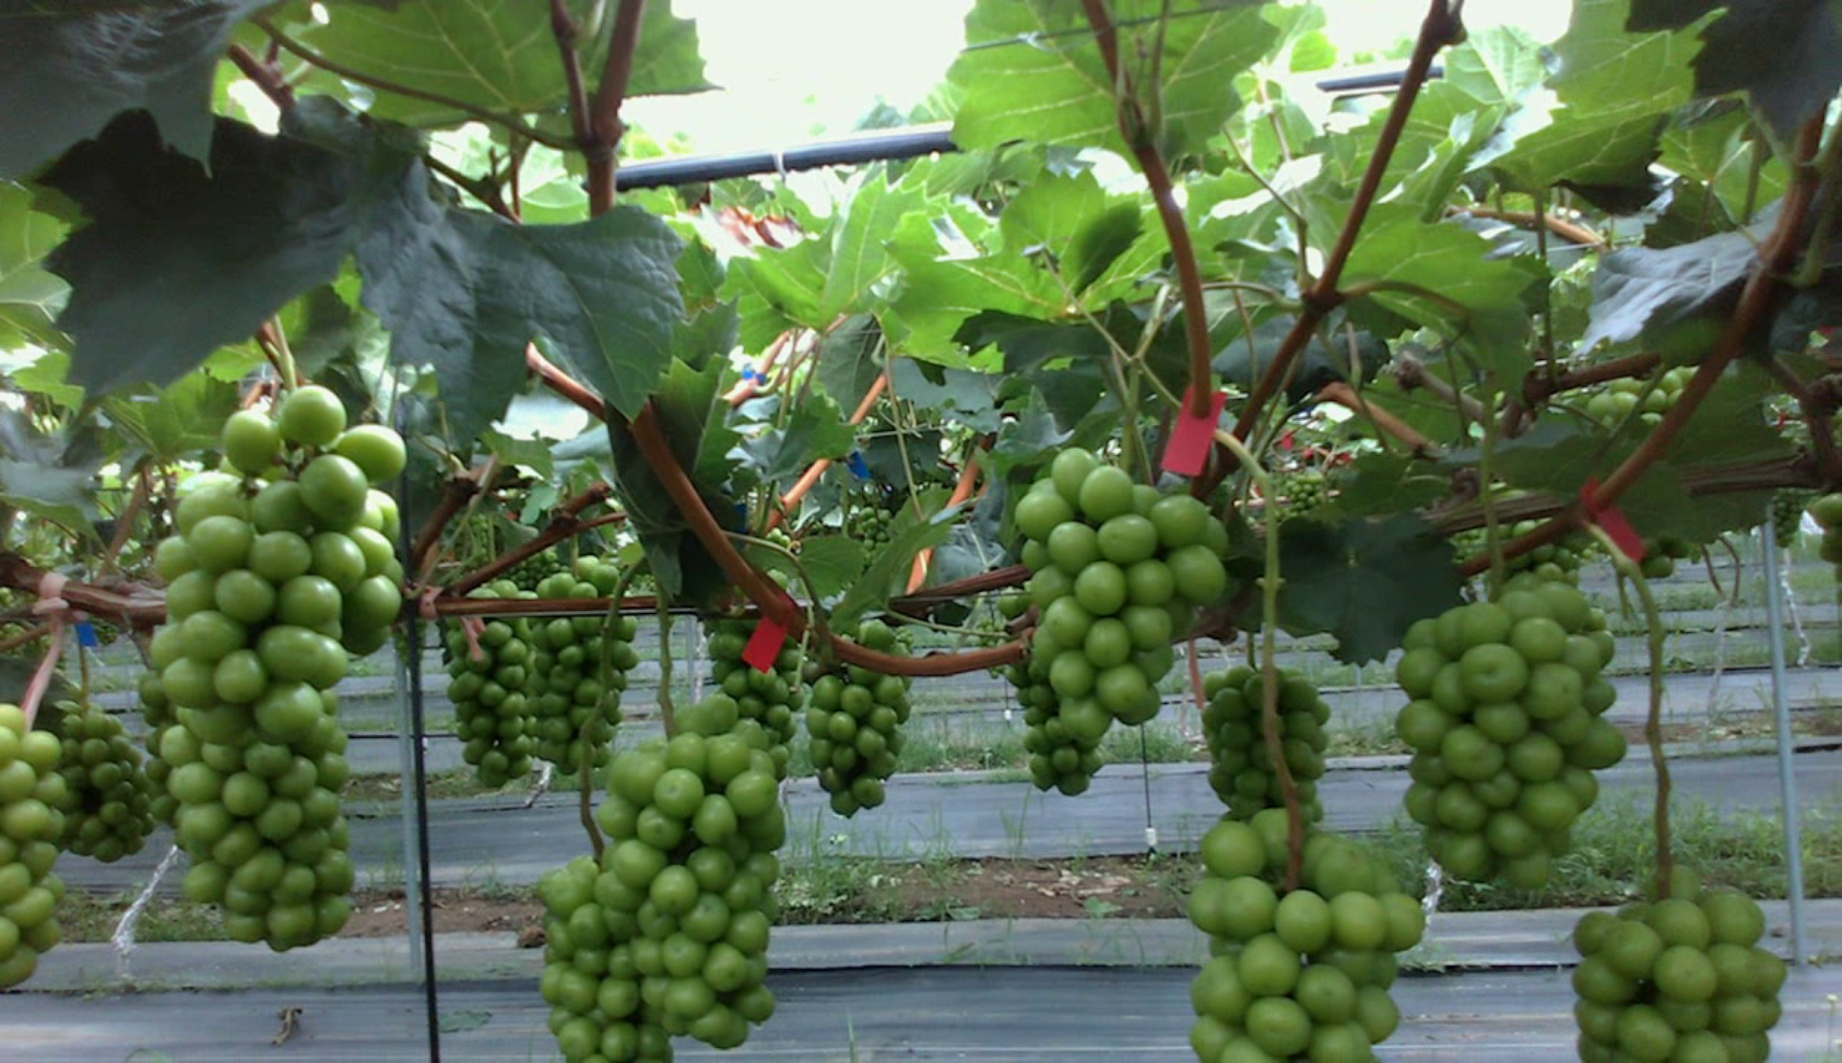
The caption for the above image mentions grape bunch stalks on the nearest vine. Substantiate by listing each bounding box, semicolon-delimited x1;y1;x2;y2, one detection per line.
1581;521;1672;898
654;577;676;740
1216;428;1305;892
269;314;297;396
577;552;645;871
1116;282;1173;472
1343;279;1503;602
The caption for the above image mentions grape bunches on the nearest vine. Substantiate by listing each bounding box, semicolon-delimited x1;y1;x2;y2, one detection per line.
593;692;787;1050
1013;449;1231;747
1187;809;1424;1062
536;855;673;1062
1570;864;1787;1062
148;384;406;954
1;703;66;988
1393;564;1627;890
